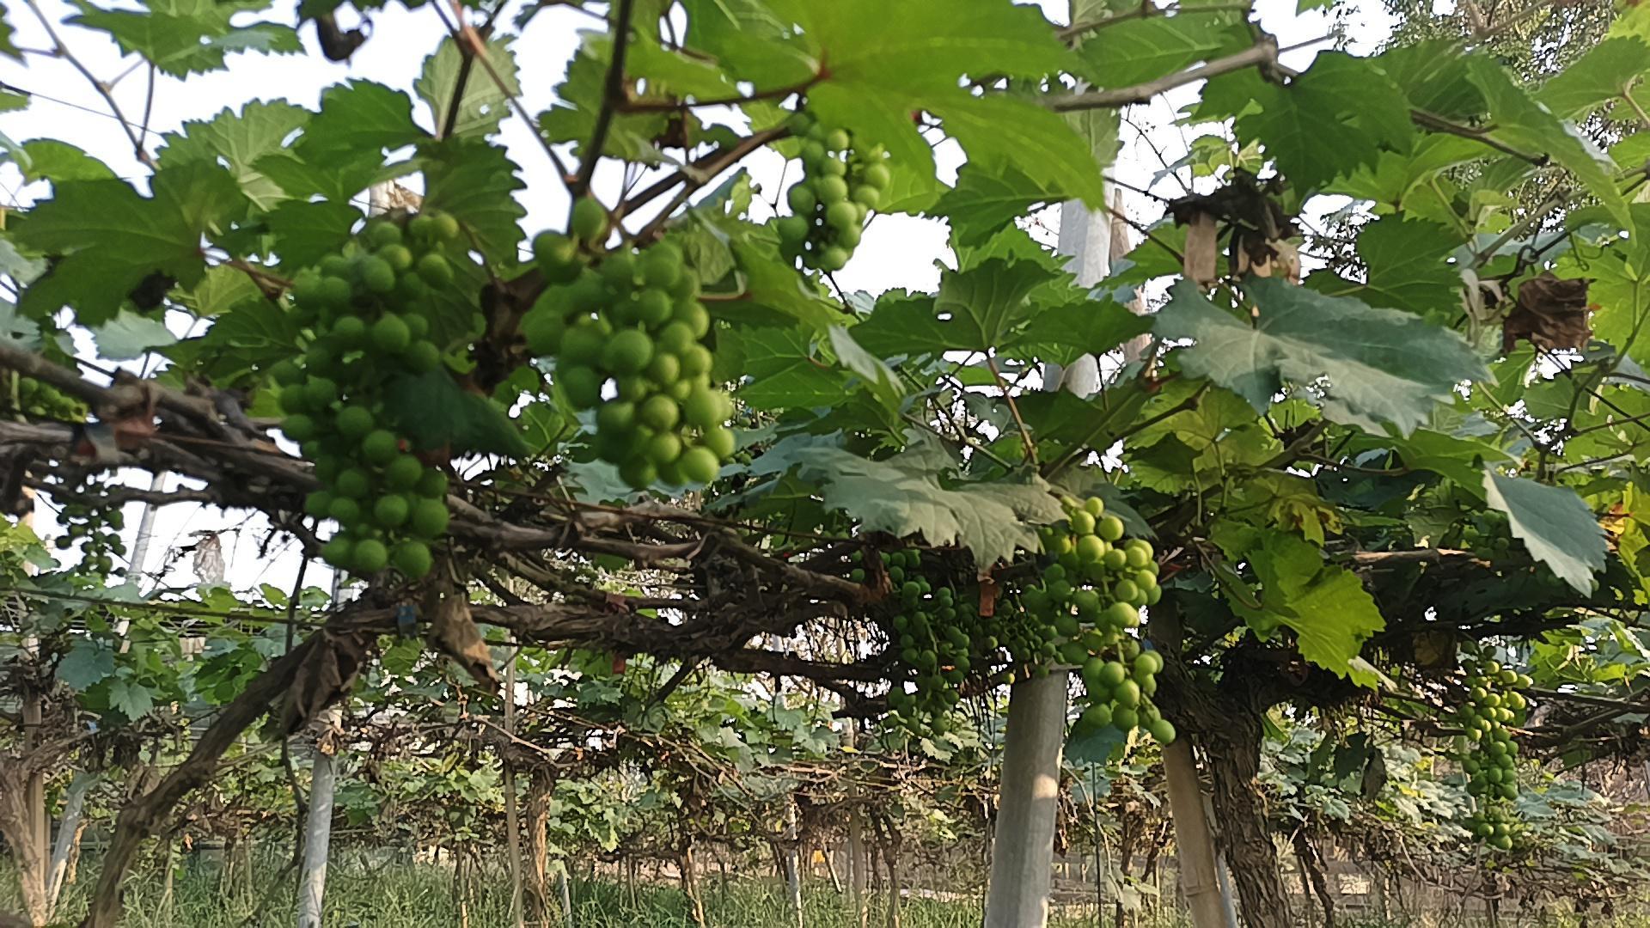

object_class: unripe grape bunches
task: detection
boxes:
[1436,510,1525,562]
[777,108,889,273]
[50,482,128,576]
[722,446,756,467]
[849,550,865,584]
[731,417,751,430]
[980,598,1067,685]
[1445,639,1534,853]
[268,207,459,581]
[702,473,751,504]
[1022,496,1176,746]
[878,547,985,733]
[18,373,91,423]
[527,197,737,491]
